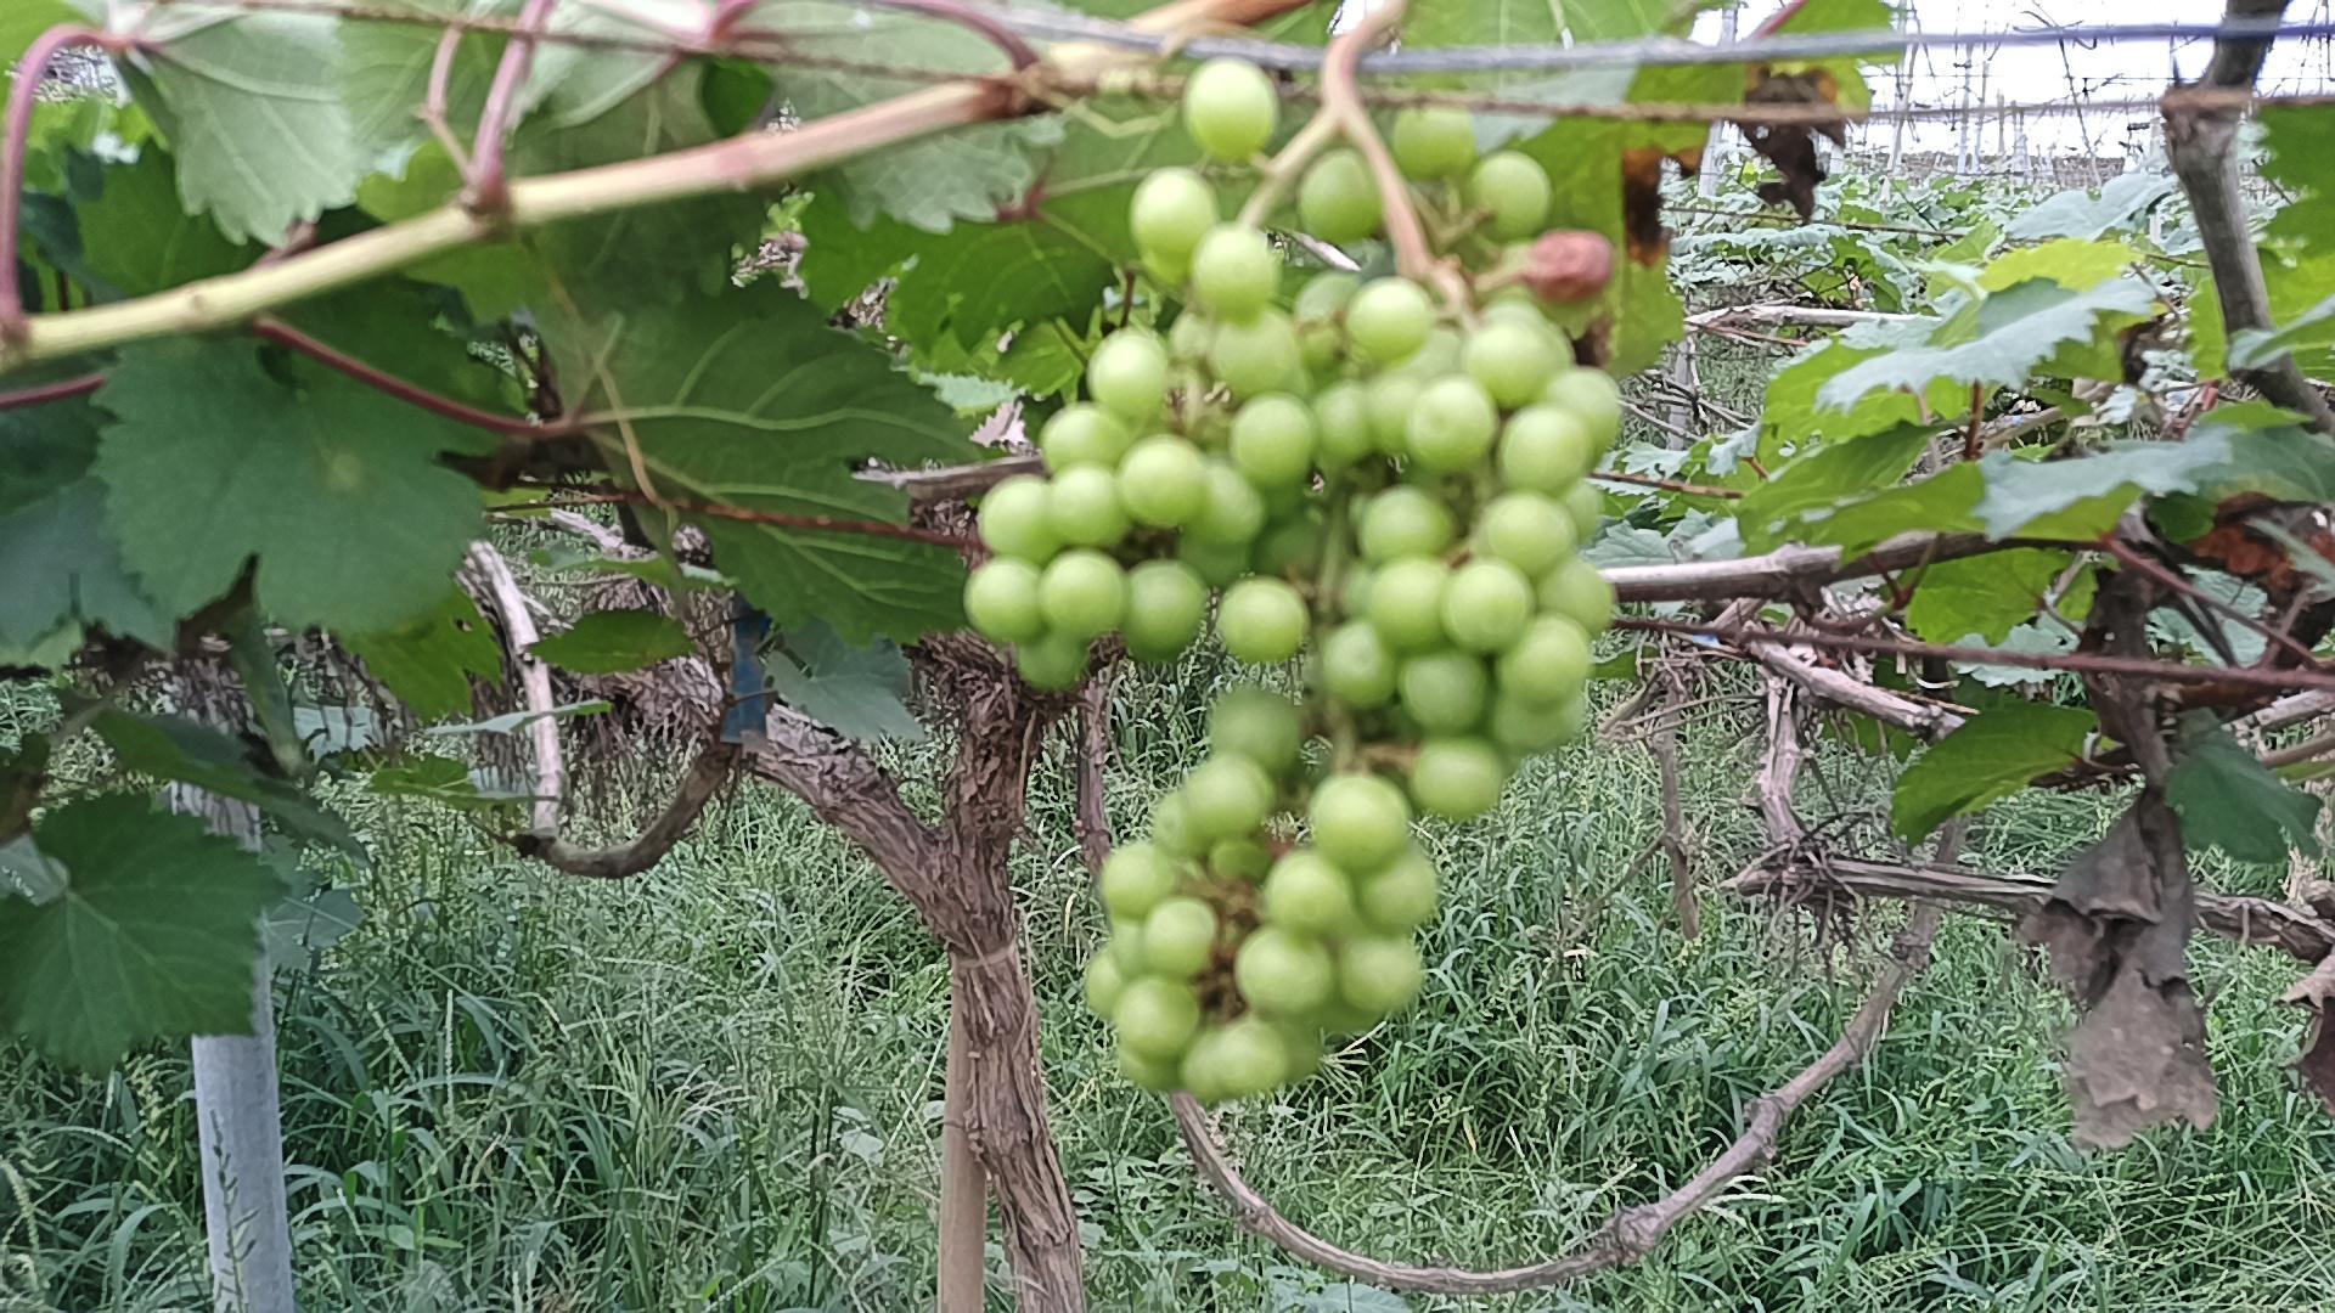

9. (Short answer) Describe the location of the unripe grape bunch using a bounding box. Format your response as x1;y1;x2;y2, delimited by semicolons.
966;58;1621;1101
